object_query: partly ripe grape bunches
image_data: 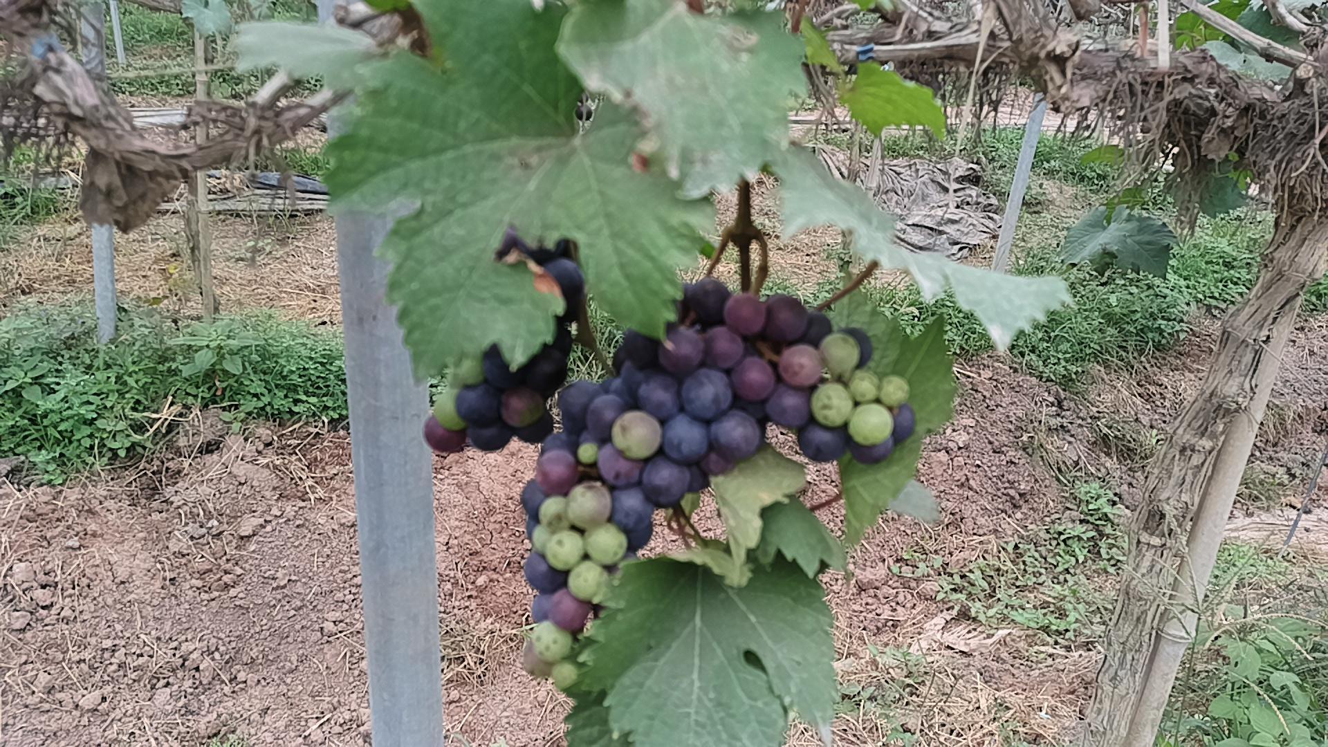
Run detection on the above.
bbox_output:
[522,277,916,690]
[425,224,585,454]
